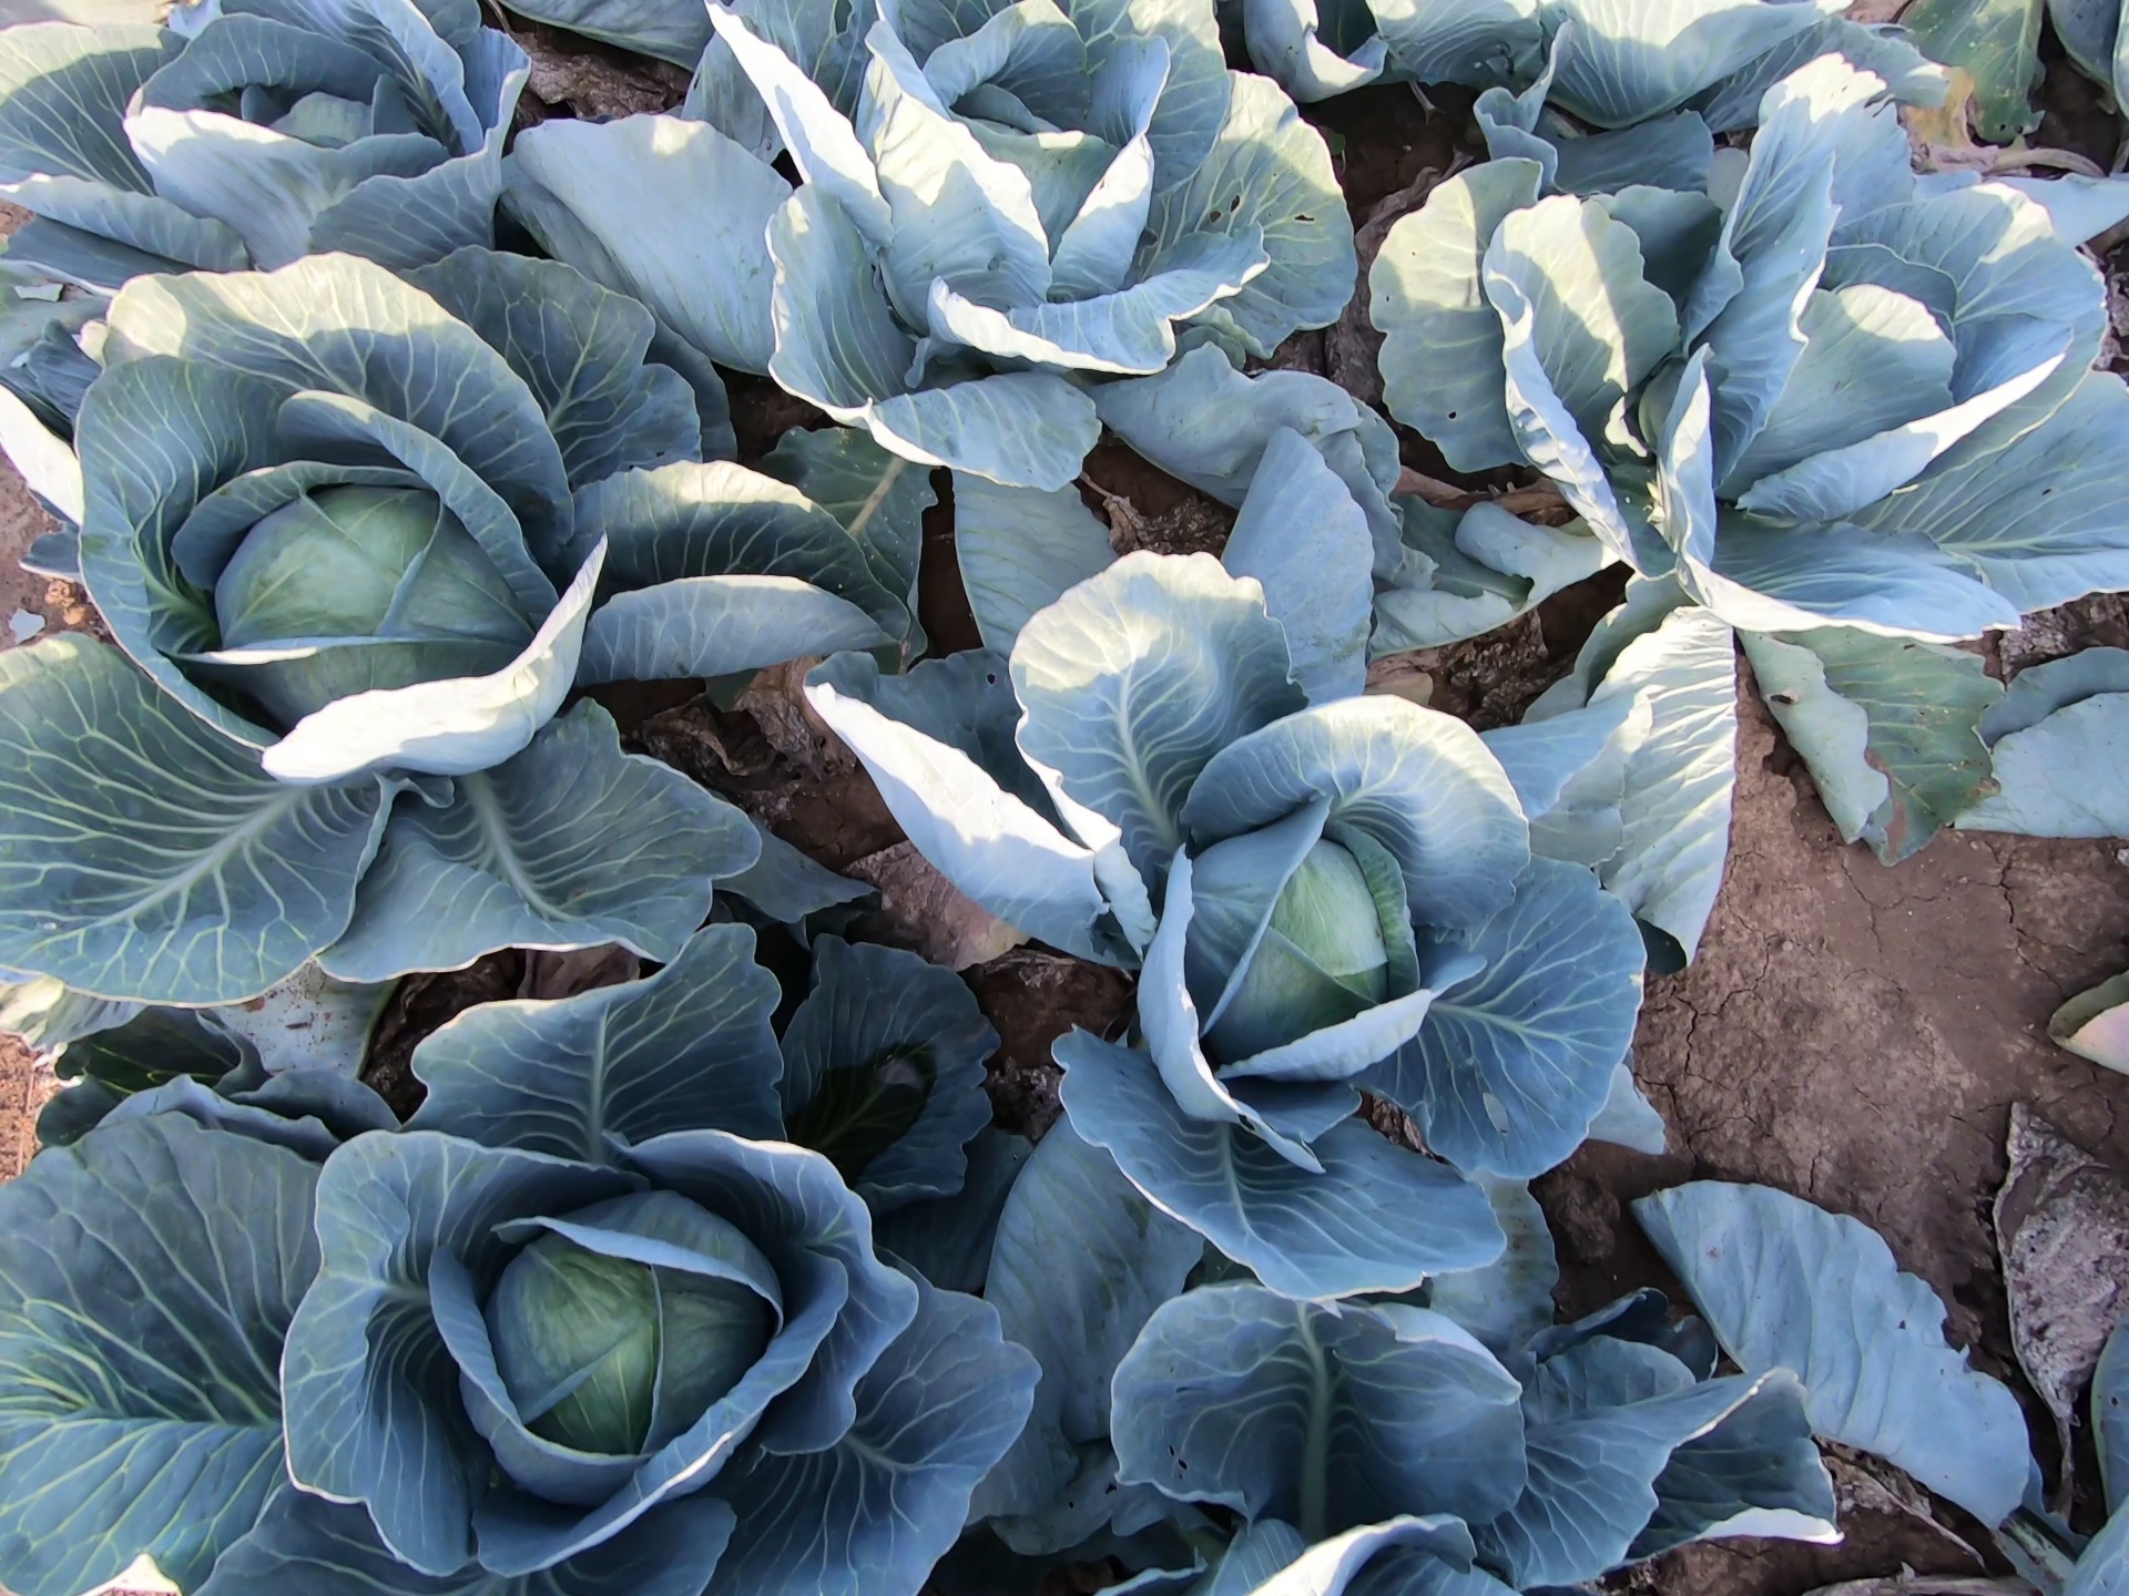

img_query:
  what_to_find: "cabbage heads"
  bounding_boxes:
[233,91,437,274]
[212,480,527,735]
[887,113,1090,310]
[469,1197,780,1505]
[1172,831,1408,1067]
[1724,288,1922,494]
